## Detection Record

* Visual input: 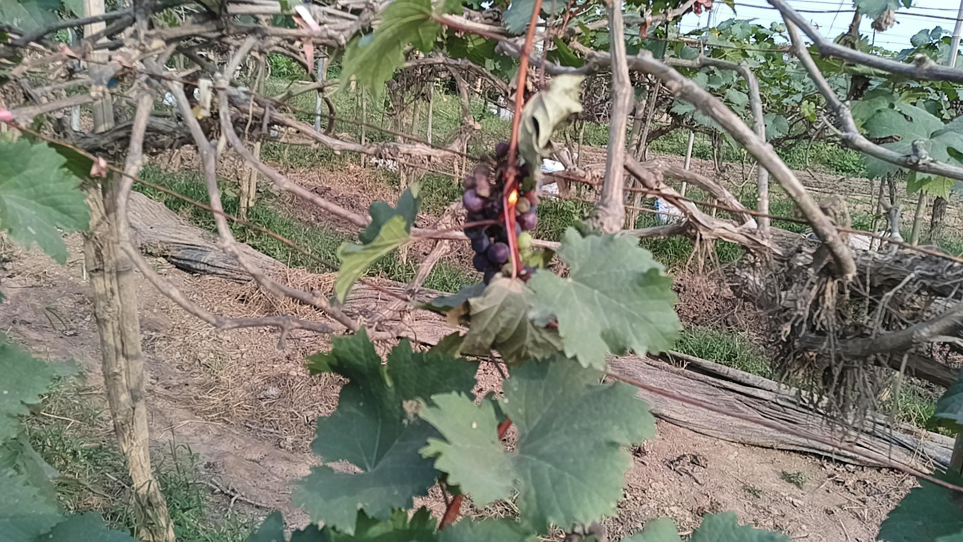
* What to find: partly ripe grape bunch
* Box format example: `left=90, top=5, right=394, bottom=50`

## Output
left=462, top=144, right=536, bottom=284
